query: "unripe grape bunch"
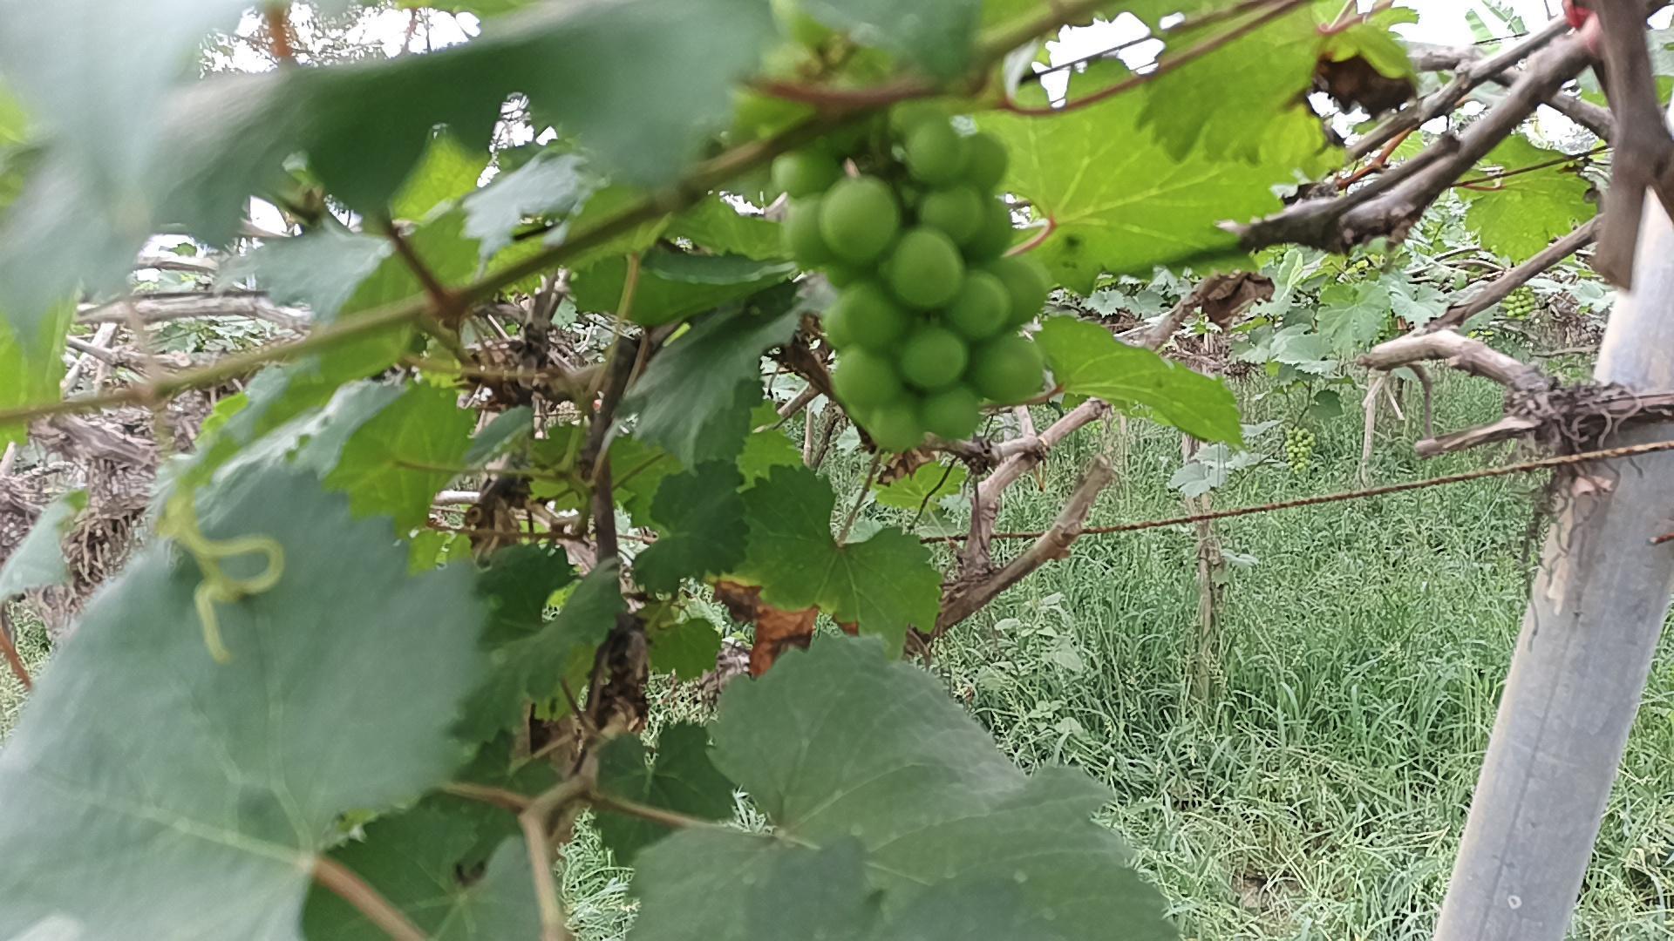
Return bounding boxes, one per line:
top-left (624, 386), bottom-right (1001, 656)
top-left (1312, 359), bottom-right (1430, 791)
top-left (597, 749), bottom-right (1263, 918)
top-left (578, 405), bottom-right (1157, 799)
top-left (772, 94), bottom-right (1048, 449)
